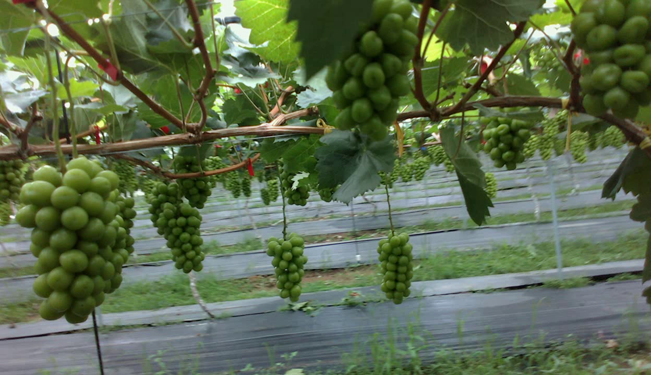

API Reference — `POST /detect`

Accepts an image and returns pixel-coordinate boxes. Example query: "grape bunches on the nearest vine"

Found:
[16,157,120,326]
[325,1,417,142]
[571,0,650,118]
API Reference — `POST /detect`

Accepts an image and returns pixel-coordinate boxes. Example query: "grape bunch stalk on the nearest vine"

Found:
[44,23,68,175]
